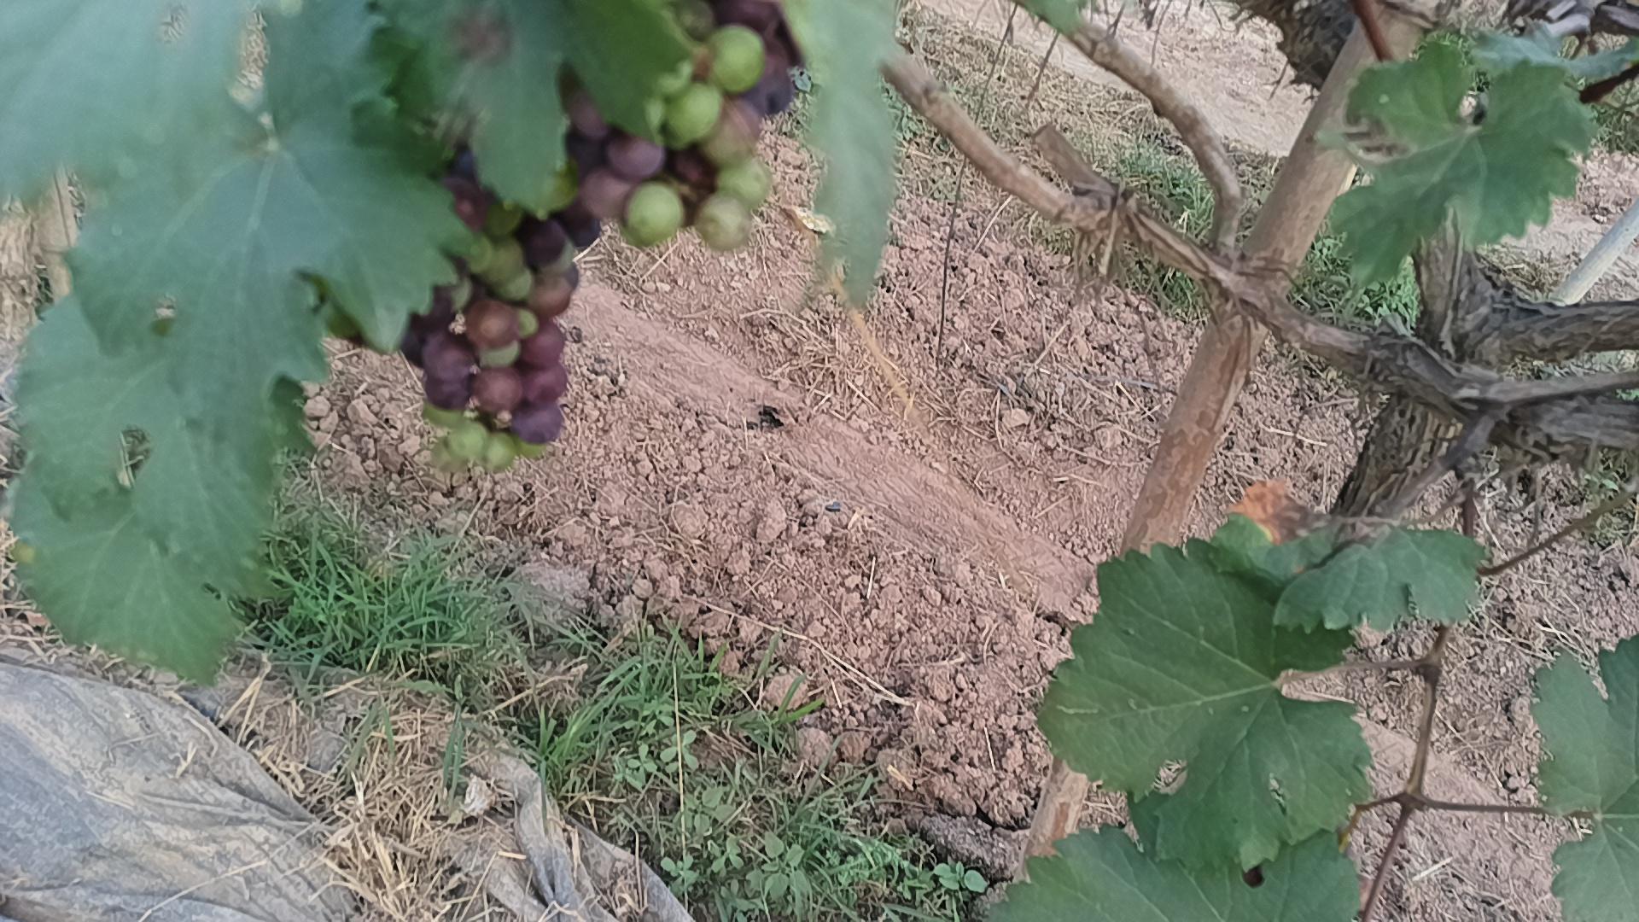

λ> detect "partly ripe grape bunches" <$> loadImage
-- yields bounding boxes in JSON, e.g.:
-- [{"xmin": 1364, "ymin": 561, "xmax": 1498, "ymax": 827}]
[
  {"xmin": 563, "ymin": 0, "xmax": 802, "ymax": 253},
  {"xmin": 400, "ymin": 152, "xmax": 600, "ymax": 474}
]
